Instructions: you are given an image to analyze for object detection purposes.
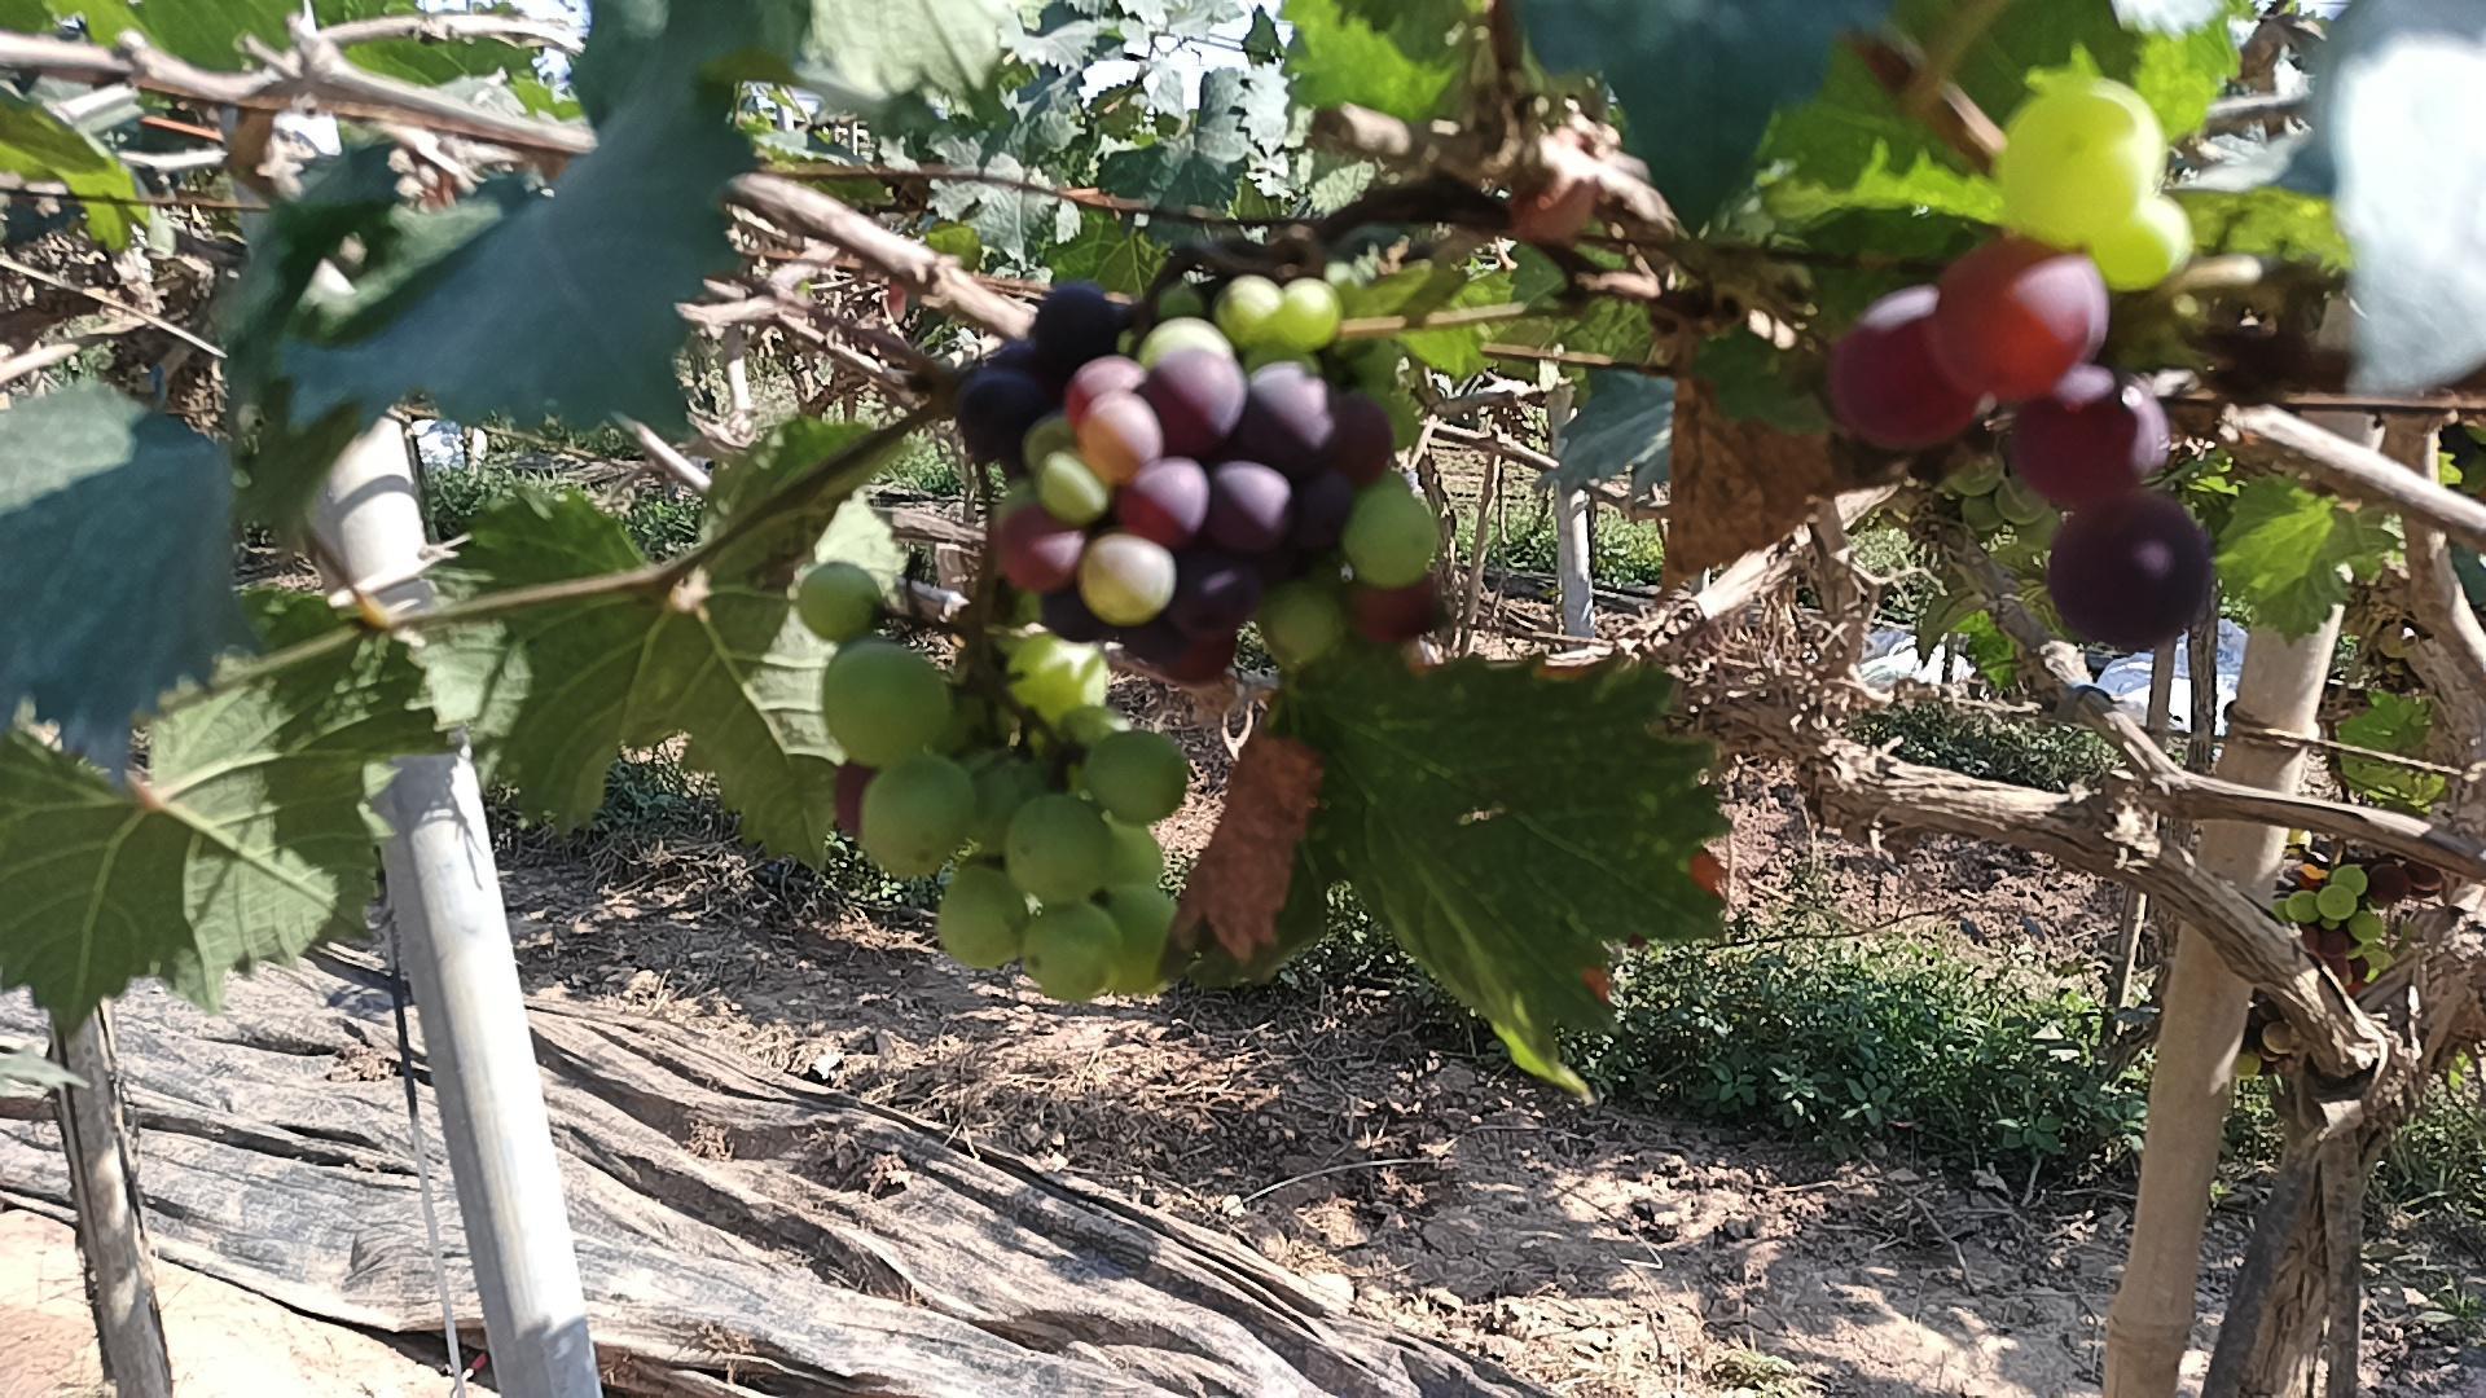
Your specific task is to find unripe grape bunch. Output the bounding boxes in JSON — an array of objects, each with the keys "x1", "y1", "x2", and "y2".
[{"x1": 796, "y1": 562, "x2": 1187, "y2": 999}]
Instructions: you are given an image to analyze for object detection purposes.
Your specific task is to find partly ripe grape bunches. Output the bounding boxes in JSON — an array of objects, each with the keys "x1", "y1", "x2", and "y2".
[
  {"x1": 957, "y1": 274, "x2": 1448, "y2": 685},
  {"x1": 1830, "y1": 79, "x2": 2209, "y2": 647}
]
